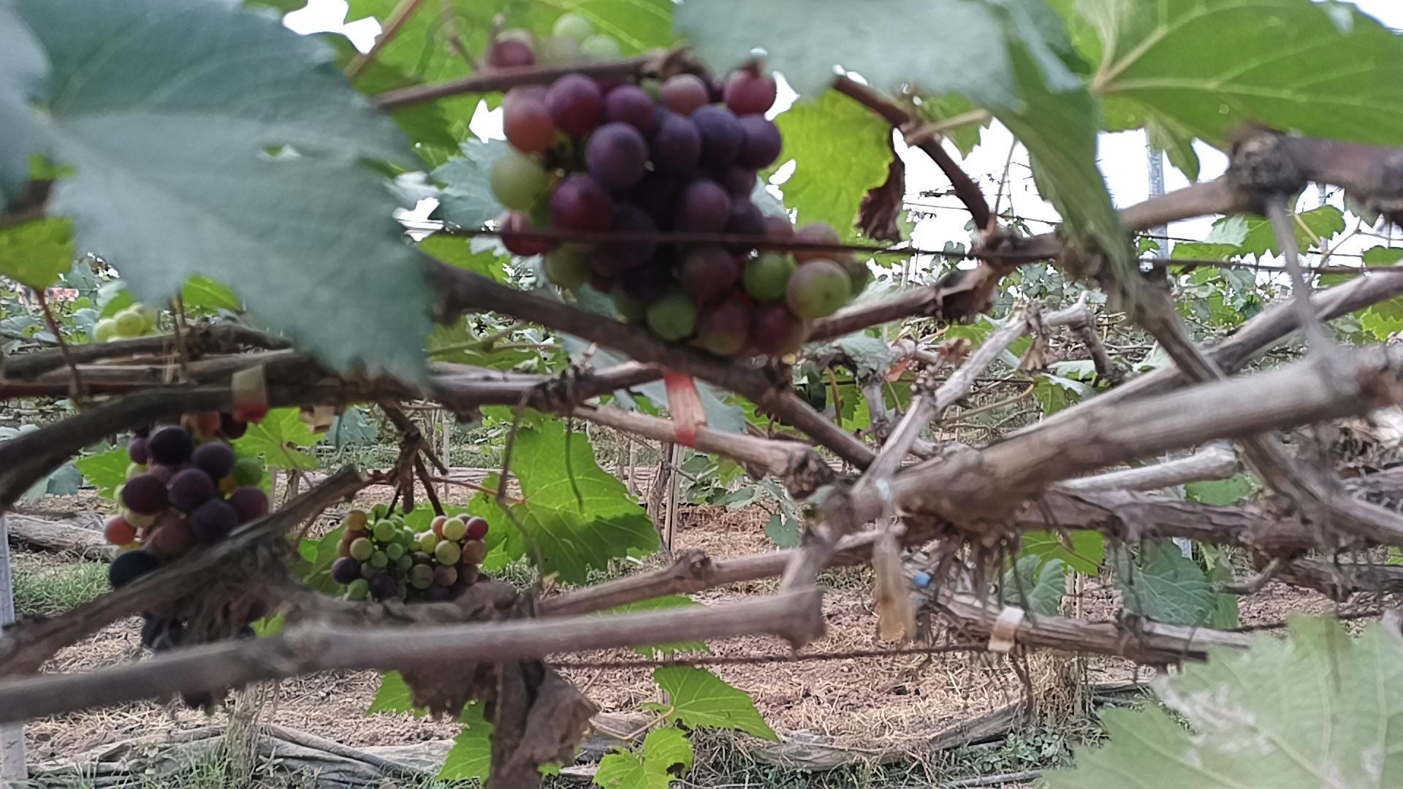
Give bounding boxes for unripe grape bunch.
[93,303,155,342]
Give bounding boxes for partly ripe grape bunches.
[331,505,488,602]
[487,15,851,357]
[104,425,267,587]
